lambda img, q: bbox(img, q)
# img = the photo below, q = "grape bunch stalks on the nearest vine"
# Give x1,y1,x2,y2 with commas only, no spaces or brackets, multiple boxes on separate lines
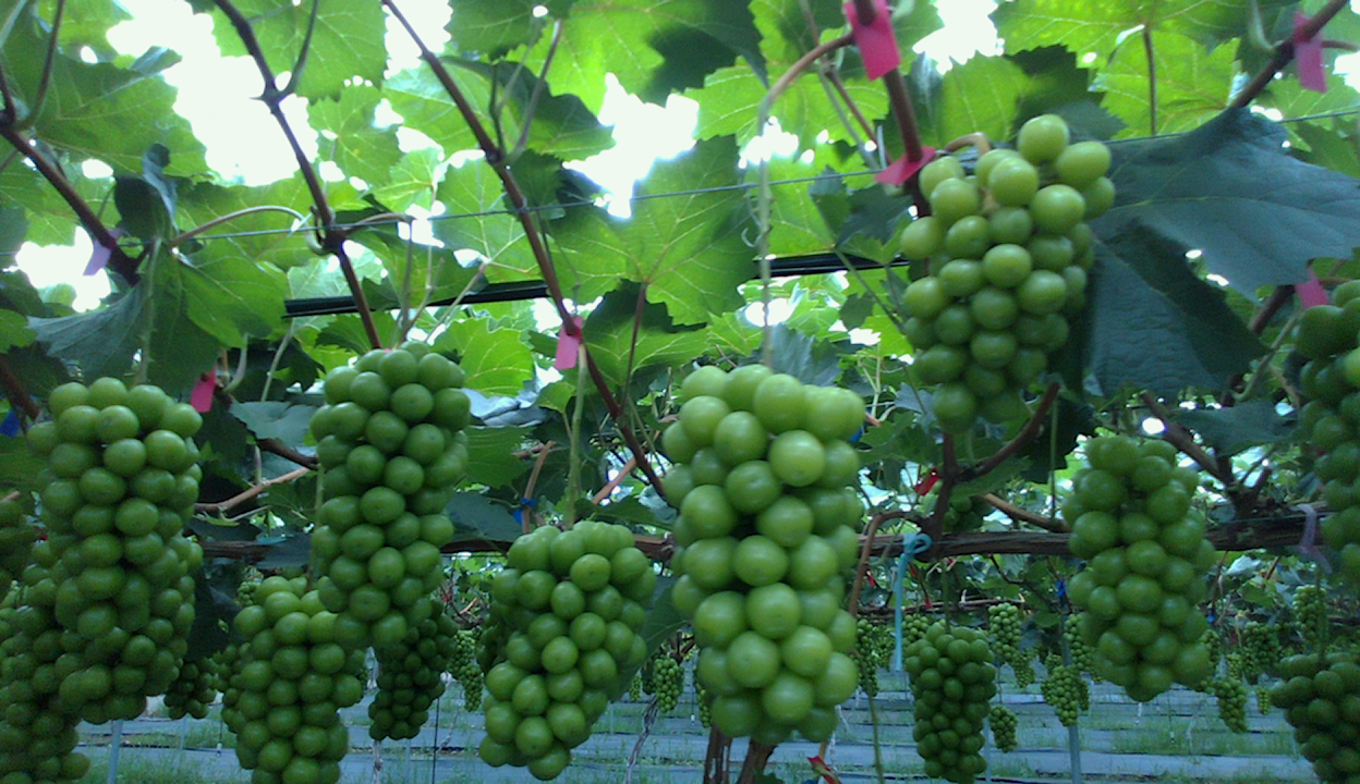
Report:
564,345,588,530
756,35,853,366
374,211,413,346
133,237,165,387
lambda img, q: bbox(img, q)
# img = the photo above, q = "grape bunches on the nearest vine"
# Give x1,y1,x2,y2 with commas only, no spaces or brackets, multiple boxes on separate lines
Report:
478,519,657,782
899,113,1115,436
663,364,864,747
1062,434,1215,702
25,377,203,639
17,534,205,725
311,340,472,650
229,576,366,783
